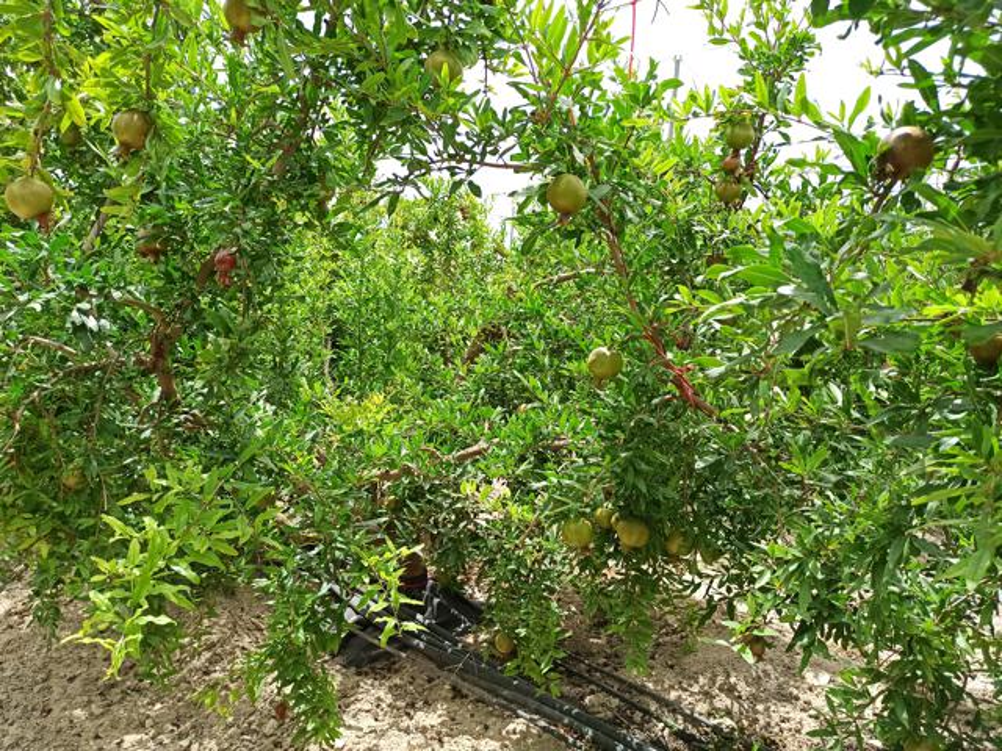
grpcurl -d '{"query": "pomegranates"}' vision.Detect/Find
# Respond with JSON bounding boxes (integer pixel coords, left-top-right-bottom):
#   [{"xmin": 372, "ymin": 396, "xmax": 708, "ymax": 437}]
[
  {"xmin": 722, "ymin": 124, "xmax": 756, "ymax": 150},
  {"xmin": 546, "ymin": 172, "xmax": 589, "ymax": 224},
  {"xmin": 424, "ymin": 49, "xmax": 463, "ymax": 89},
  {"xmin": 110, "ymin": 110, "xmax": 153, "ymax": 160},
  {"xmin": 5, "ymin": 175, "xmax": 53, "ymax": 228},
  {"xmin": 560, "ymin": 521, "xmax": 593, "ymax": 555},
  {"xmin": 61, "ymin": 474, "xmax": 78, "ymax": 491},
  {"xmin": 493, "ymin": 634, "xmax": 515, "ymax": 654},
  {"xmin": 221, "ymin": 0, "xmax": 260, "ymax": 44},
  {"xmin": 968, "ymin": 335, "xmax": 1002, "ymax": 366},
  {"xmin": 135, "ymin": 228, "xmax": 160, "ymax": 264},
  {"xmin": 593, "ymin": 507, "xmax": 614, "ymax": 529},
  {"xmin": 722, "ymin": 155, "xmax": 744, "ymax": 178},
  {"xmin": 587, "ymin": 347, "xmax": 625, "ymax": 390},
  {"xmin": 748, "ymin": 637, "xmax": 767, "ymax": 663},
  {"xmin": 617, "ymin": 519, "xmax": 650, "ymax": 554},
  {"xmin": 611, "ymin": 510, "xmax": 622, "ymax": 532},
  {"xmin": 715, "ymin": 181, "xmax": 744, "ymax": 211},
  {"xmin": 665, "ymin": 537, "xmax": 679, "ymax": 557},
  {"xmin": 903, "ymin": 737, "xmax": 933, "ymax": 751},
  {"xmin": 877, "ymin": 125, "xmax": 936, "ymax": 181}
]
